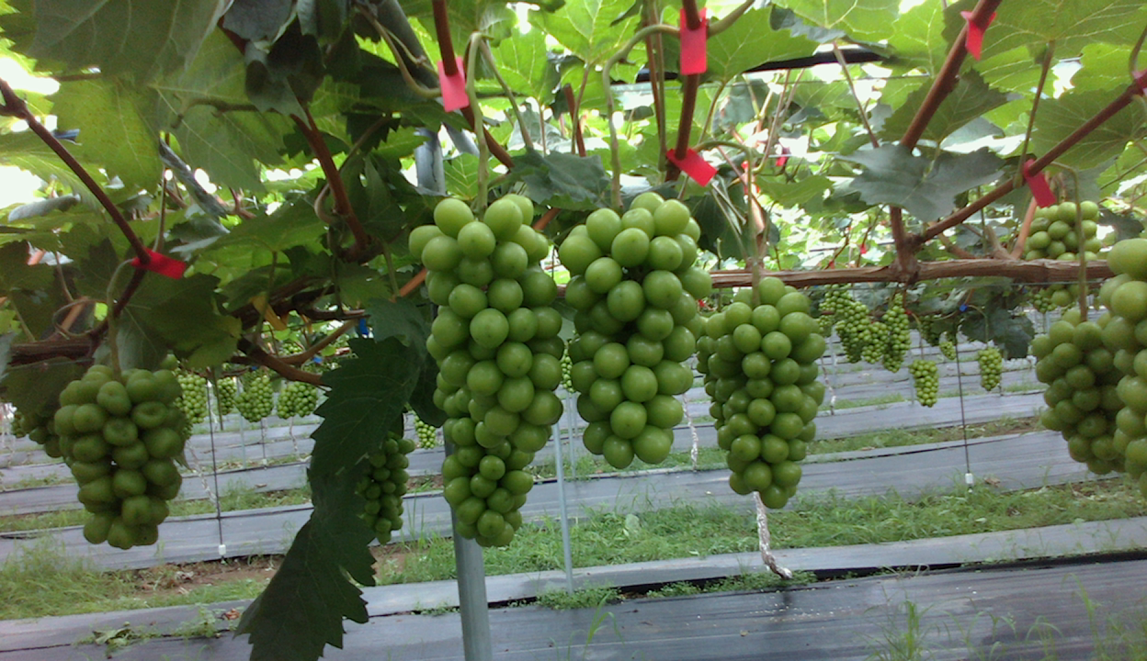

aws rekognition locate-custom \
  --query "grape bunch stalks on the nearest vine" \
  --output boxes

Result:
[603,24,680,211]
[466,32,530,221]
[697,140,761,307]
[1052,162,1088,321]
[108,260,130,381]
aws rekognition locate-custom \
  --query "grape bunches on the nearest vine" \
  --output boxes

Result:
[54,364,185,550]
[704,277,825,510]
[1029,307,1124,476]
[433,374,536,547]
[408,194,563,454]
[1096,238,1146,498]
[558,191,710,470]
